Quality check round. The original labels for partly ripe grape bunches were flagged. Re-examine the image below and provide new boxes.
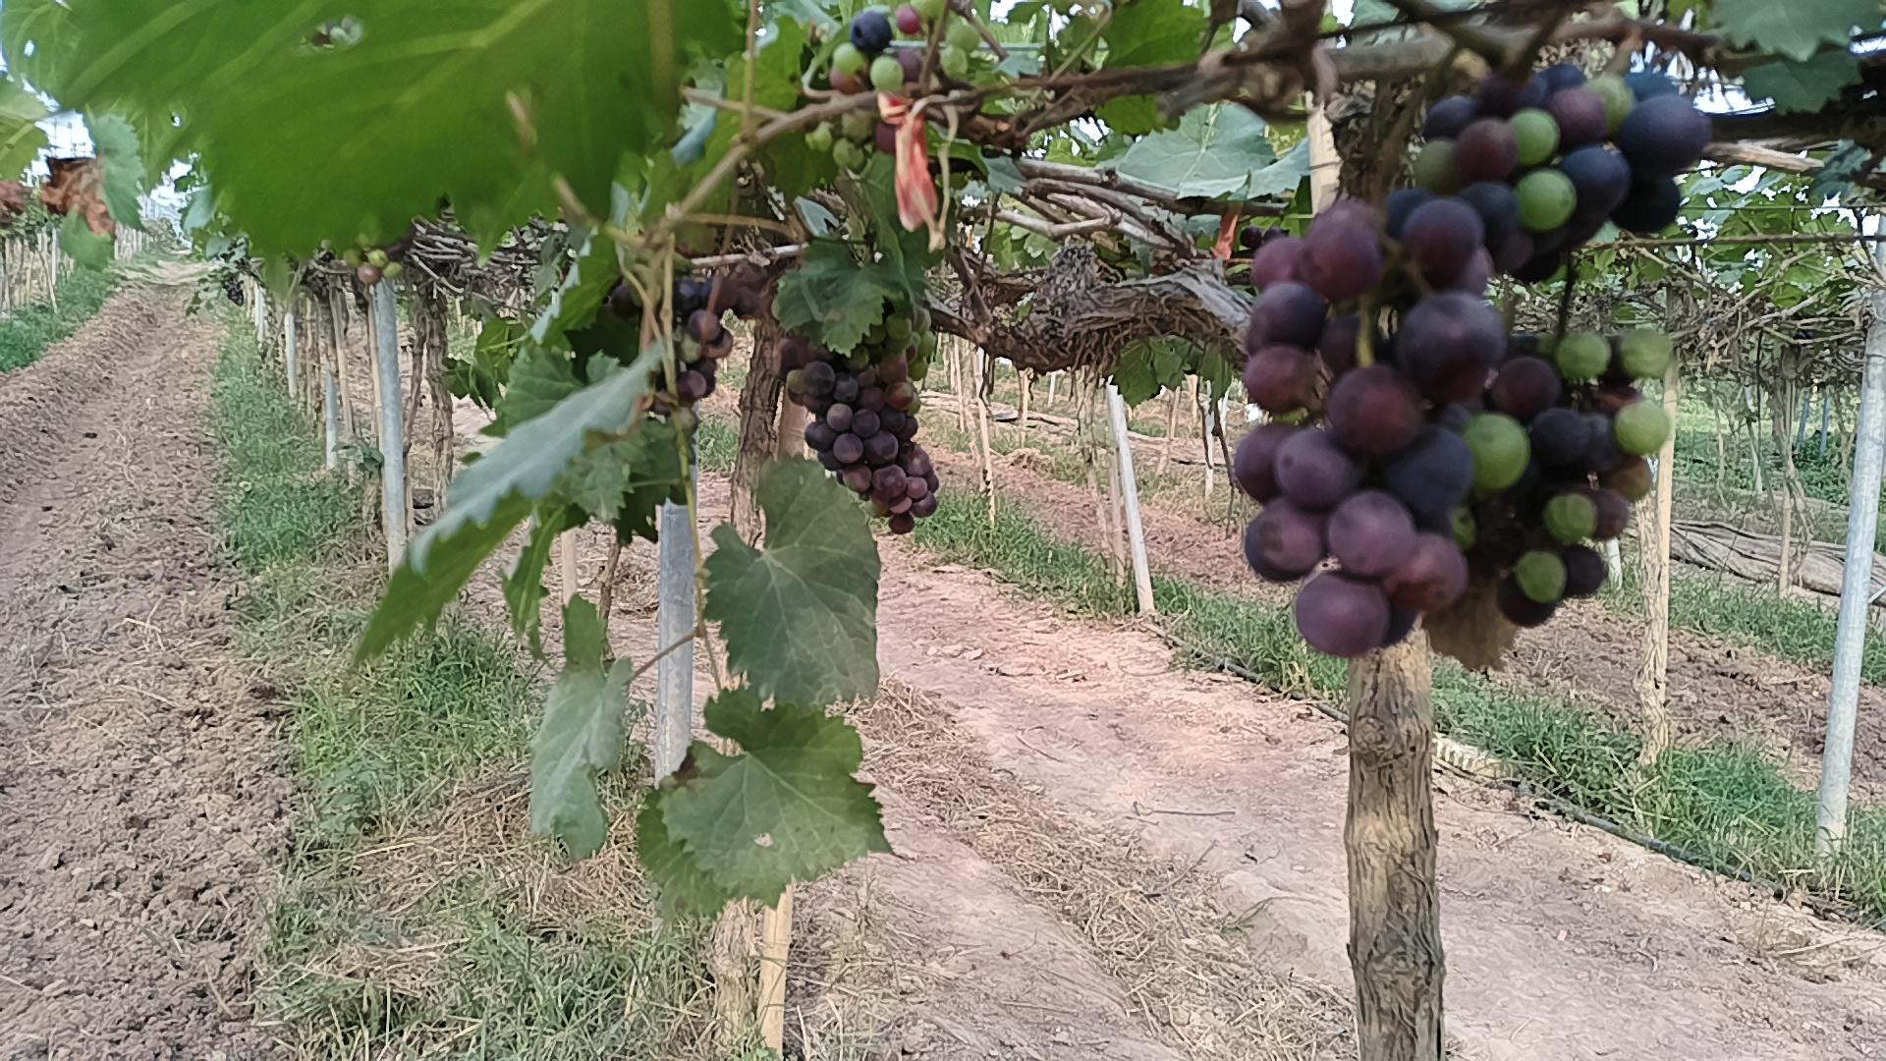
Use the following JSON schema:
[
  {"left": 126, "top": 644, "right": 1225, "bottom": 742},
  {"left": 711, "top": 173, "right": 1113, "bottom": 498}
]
[
  {"left": 322, "top": 241, "right": 401, "bottom": 285},
  {"left": 780, "top": 301, "right": 939, "bottom": 532},
  {"left": 1230, "top": 64, "right": 1710, "bottom": 657},
  {"left": 807, "top": 0, "right": 979, "bottom": 168},
  {"left": 607, "top": 258, "right": 769, "bottom": 414}
]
